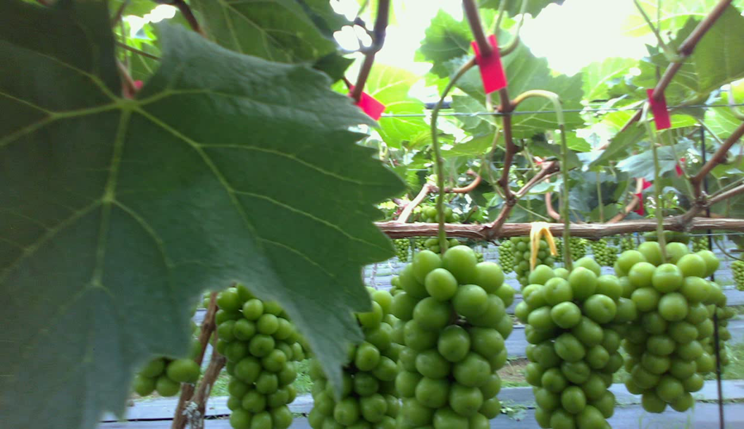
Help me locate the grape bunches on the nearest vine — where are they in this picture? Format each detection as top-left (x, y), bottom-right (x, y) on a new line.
top-left (514, 257), bottom-right (635, 428)
top-left (613, 242), bottom-right (721, 414)
top-left (308, 287), bottom-right (404, 428)
top-left (391, 245), bottom-right (514, 428)
top-left (215, 283), bottom-right (314, 428)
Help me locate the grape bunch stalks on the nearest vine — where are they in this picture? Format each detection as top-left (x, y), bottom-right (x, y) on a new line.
top-left (430, 59), bottom-right (475, 251)
top-left (510, 89), bottom-right (572, 270)
top-left (643, 102), bottom-right (669, 262)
